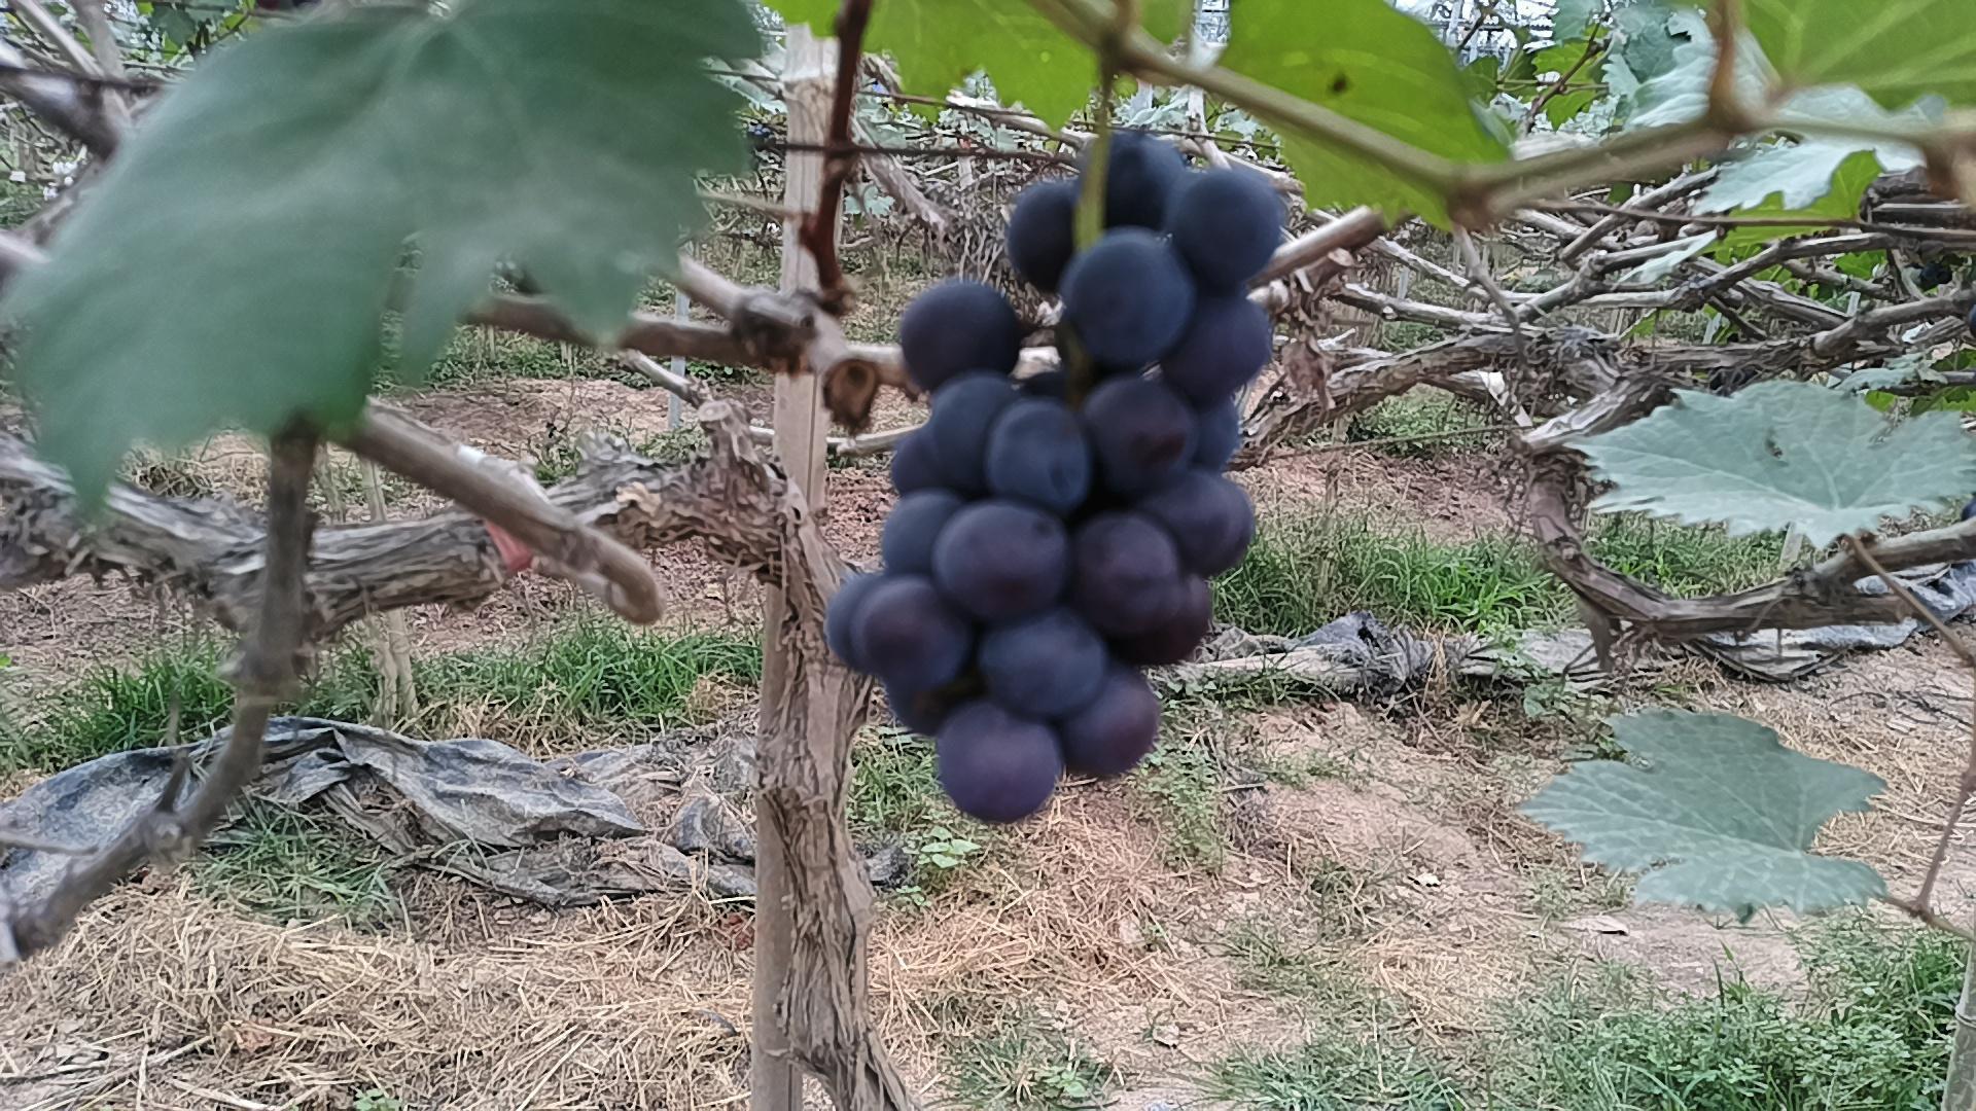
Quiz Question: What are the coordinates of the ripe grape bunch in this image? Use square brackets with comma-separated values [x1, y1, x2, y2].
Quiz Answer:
[827, 131, 1283, 822]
